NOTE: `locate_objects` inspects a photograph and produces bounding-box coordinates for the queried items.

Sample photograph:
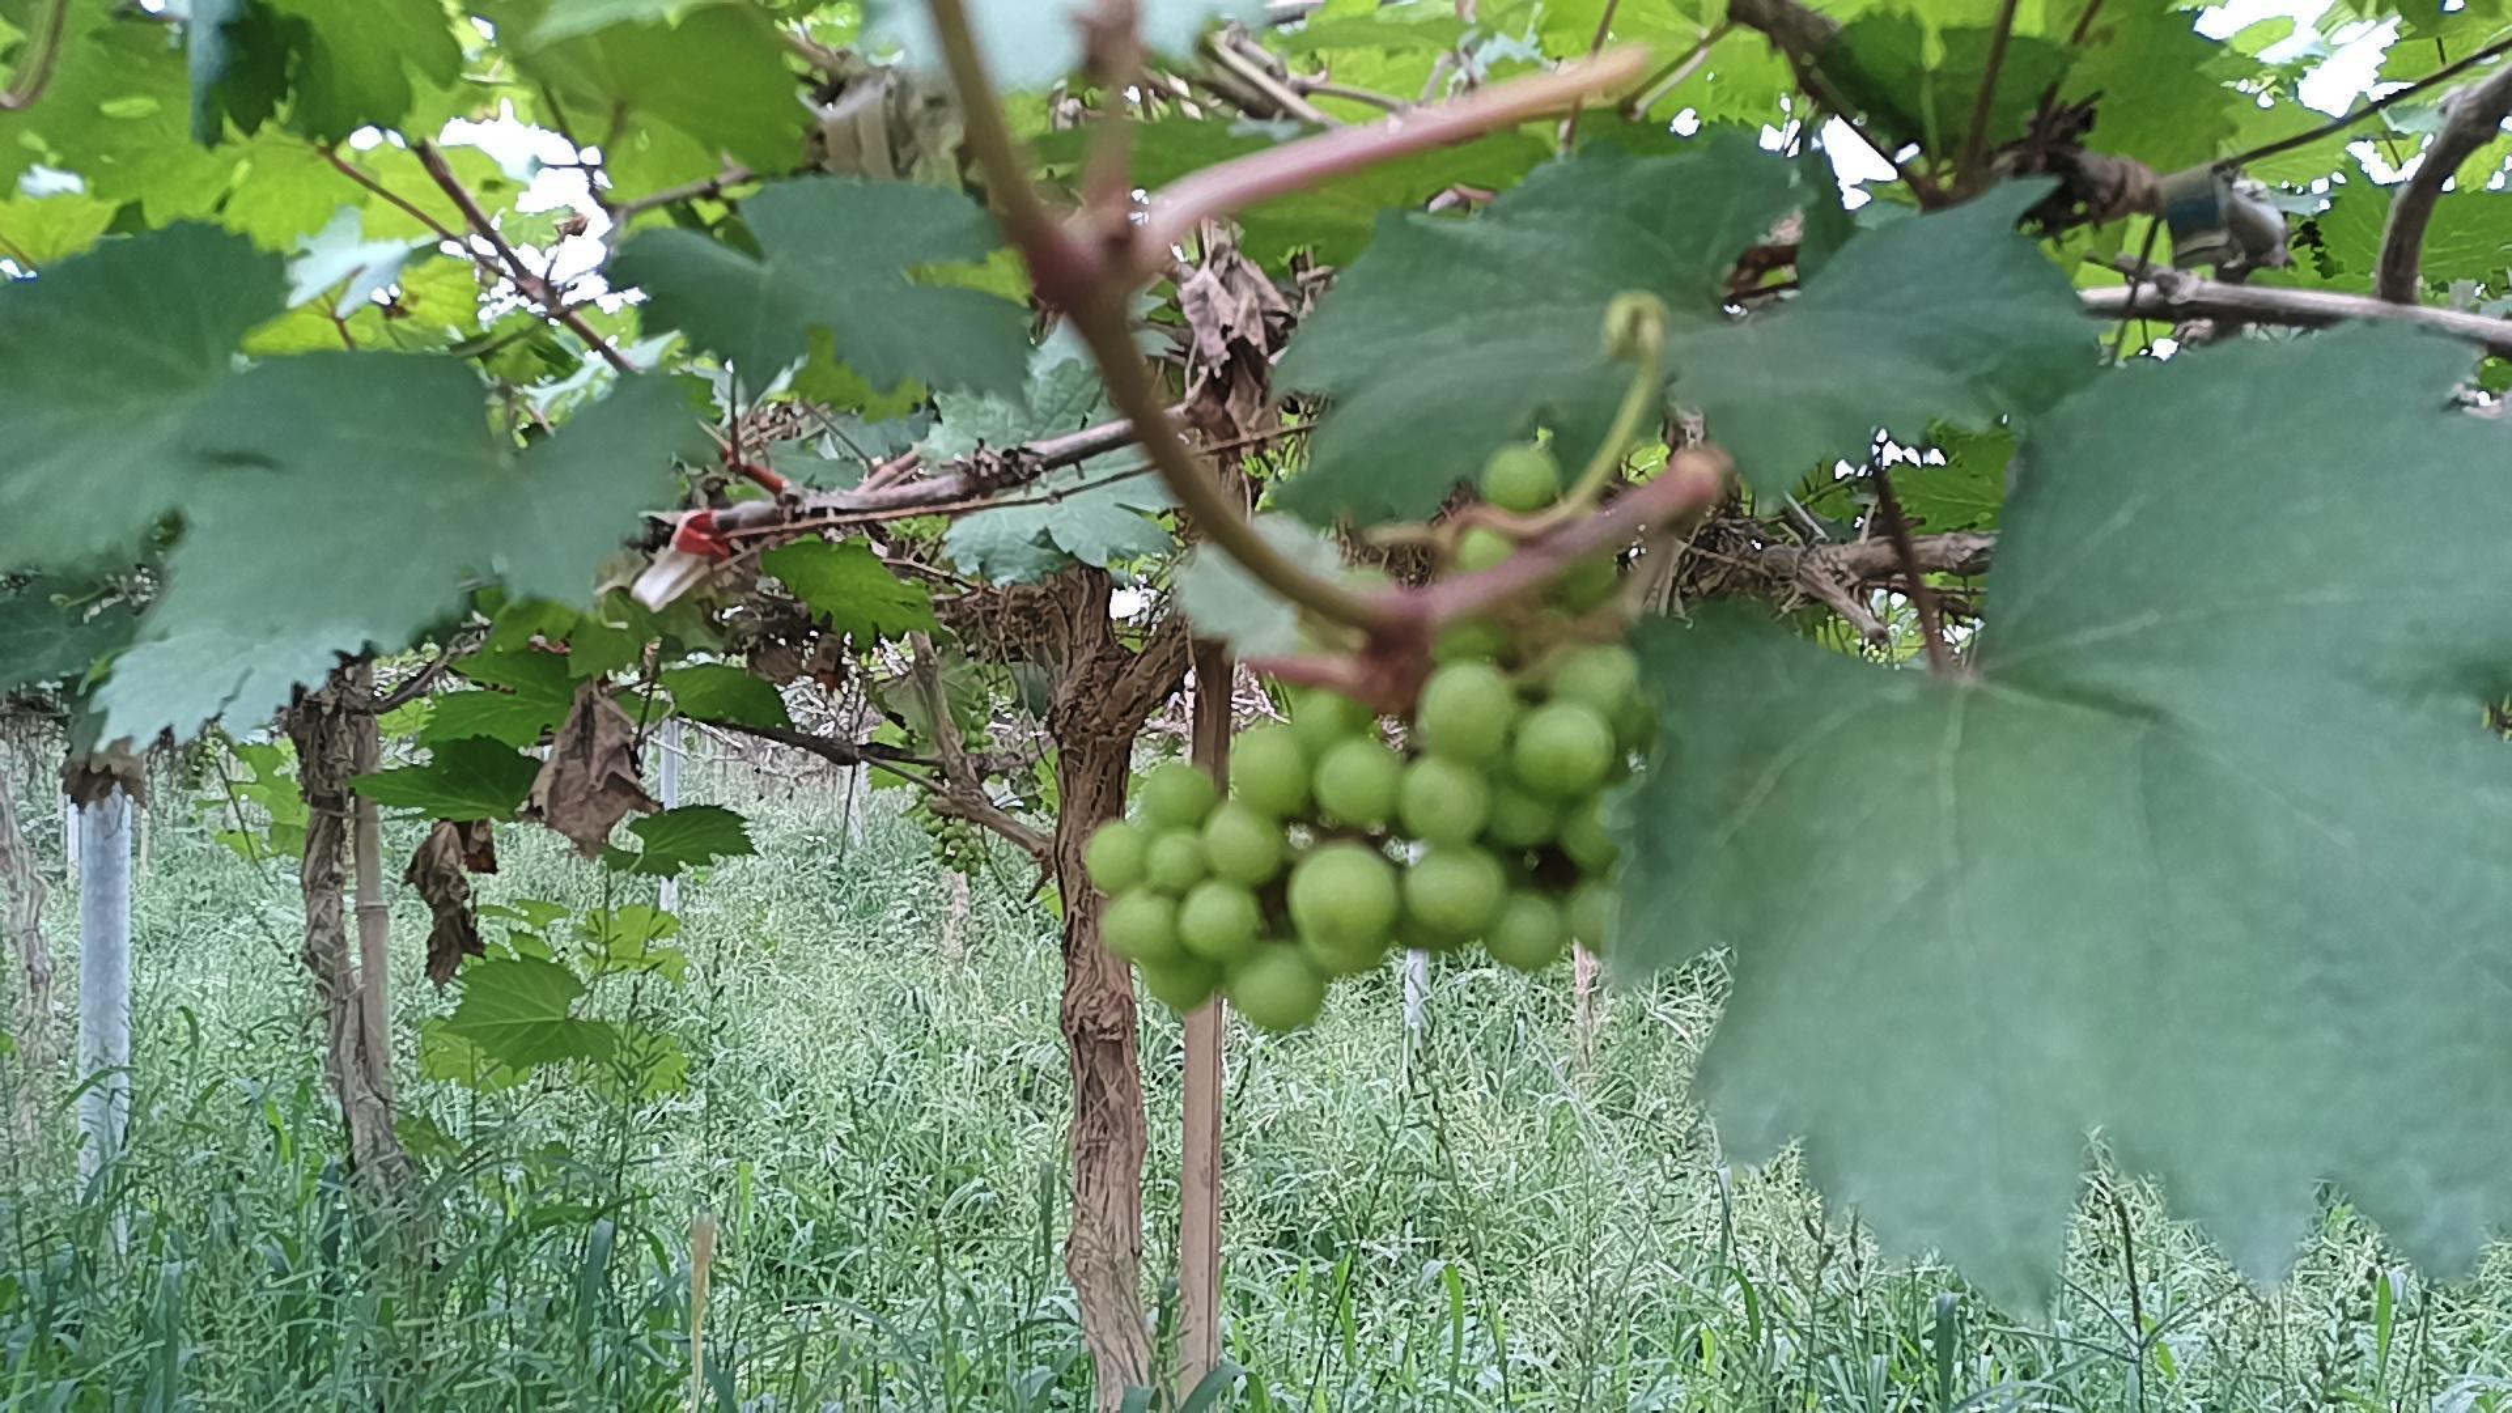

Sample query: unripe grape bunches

[905,792,998,878]
[1095,444,1647,1031]
[933,635,990,752]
